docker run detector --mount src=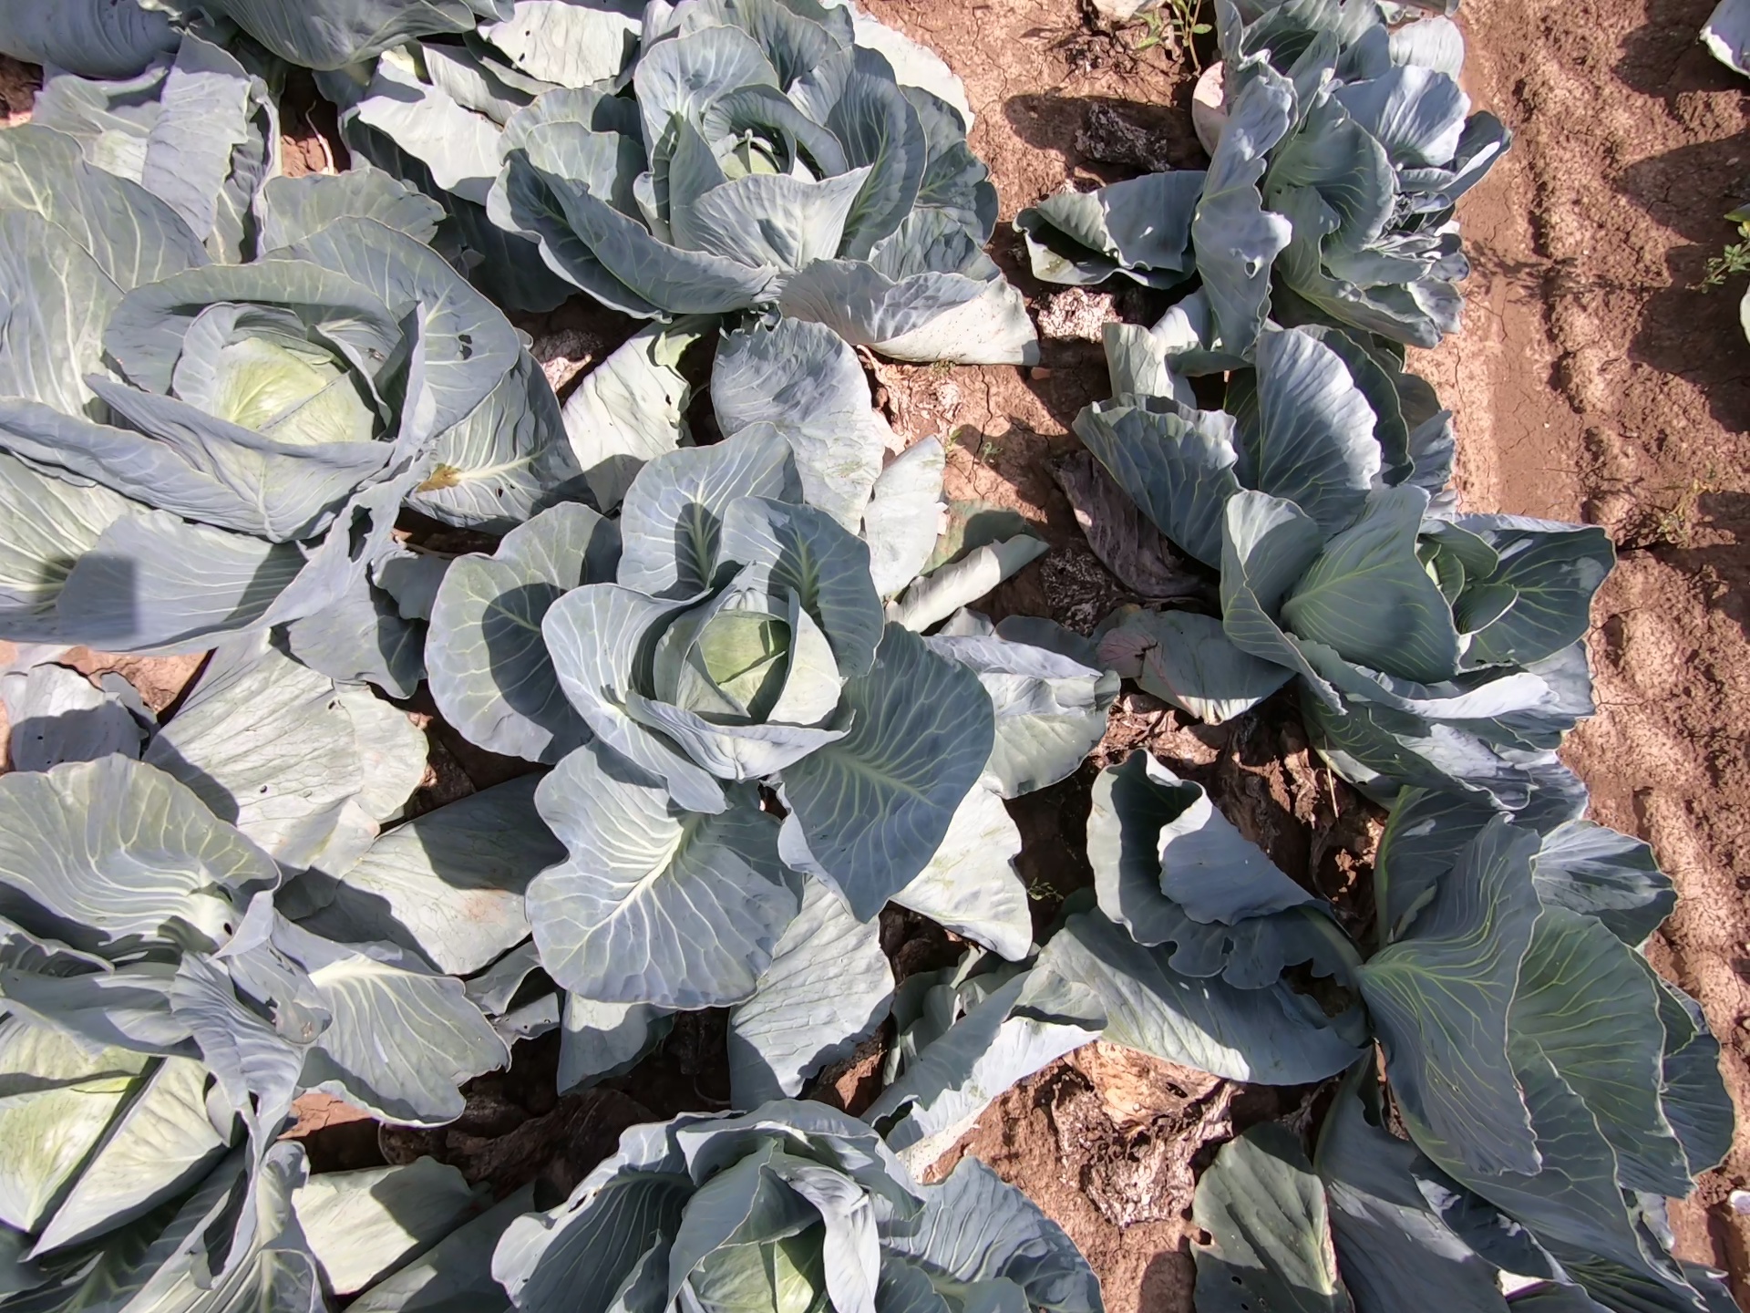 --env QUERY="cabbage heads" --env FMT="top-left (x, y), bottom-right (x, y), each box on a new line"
top-left (657, 593), bottom-right (839, 756)
top-left (698, 139), bottom-right (823, 265)
top-left (0, 962), bottom-right (275, 1250)
top-left (678, 1163), bottom-right (862, 1312)
top-left (1307, 532), bottom-right (1449, 658)
top-left (170, 335), bottom-right (376, 507)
